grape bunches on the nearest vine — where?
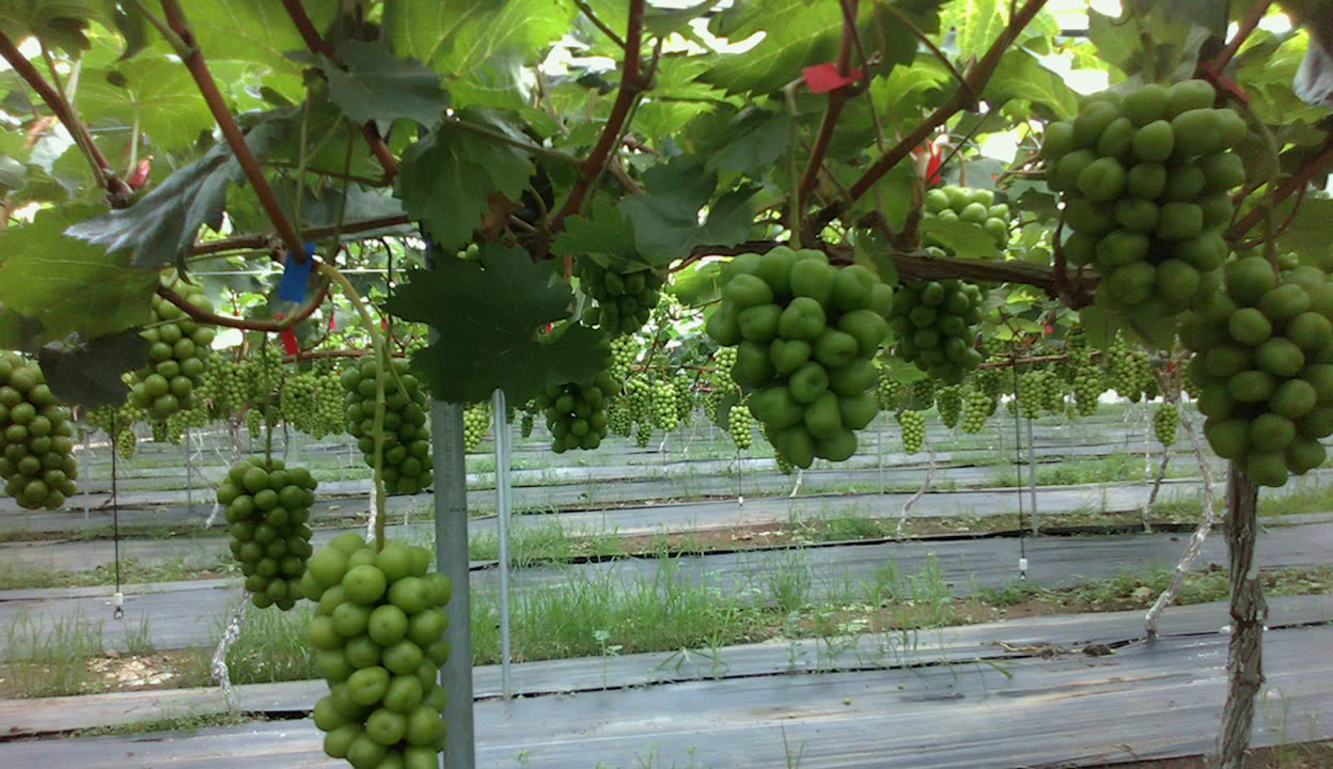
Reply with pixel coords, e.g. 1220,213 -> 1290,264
1179,244 -> 1332,488
706,245 -> 895,470
1045,78 -> 1249,343
299,532 -> 453,768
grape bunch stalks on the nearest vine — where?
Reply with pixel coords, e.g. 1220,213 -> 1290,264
781,76 -> 804,251
1240,104 -> 1282,289
322,264 -> 392,554
1127,1 -> 1155,84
